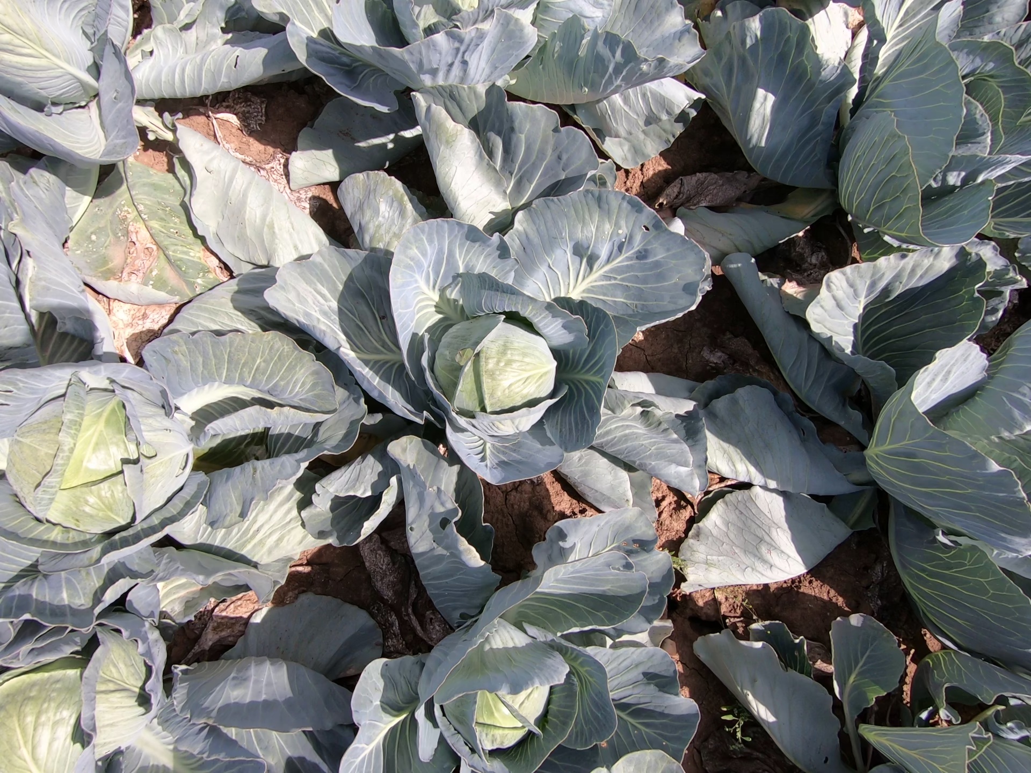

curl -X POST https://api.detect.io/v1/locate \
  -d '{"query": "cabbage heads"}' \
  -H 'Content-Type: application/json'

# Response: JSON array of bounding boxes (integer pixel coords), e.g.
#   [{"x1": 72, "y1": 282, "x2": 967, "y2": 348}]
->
[
  {"x1": 4, "y1": 386, "x2": 181, "y2": 537},
  {"x1": 1, "y1": 654, "x2": 124, "y2": 772},
  {"x1": 393, "y1": 1, "x2": 538, "y2": 64},
  {"x1": 433, "y1": 312, "x2": 556, "y2": 435},
  {"x1": 442, "y1": 629, "x2": 555, "y2": 753}
]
